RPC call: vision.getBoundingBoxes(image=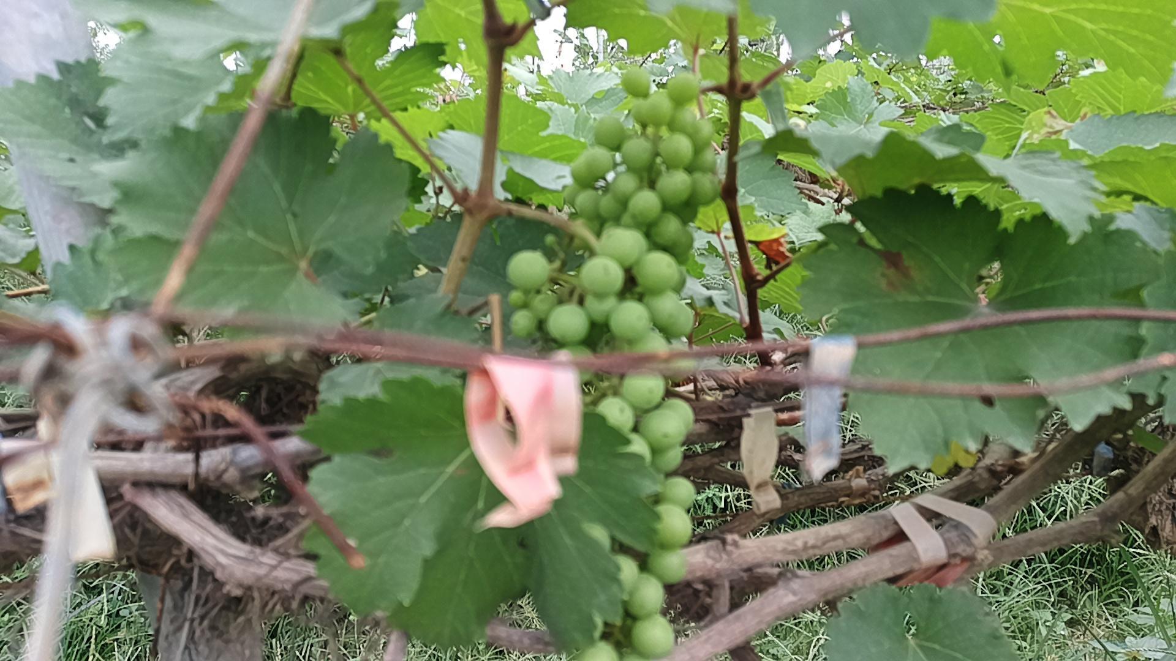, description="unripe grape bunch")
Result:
[505,66,718,660]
